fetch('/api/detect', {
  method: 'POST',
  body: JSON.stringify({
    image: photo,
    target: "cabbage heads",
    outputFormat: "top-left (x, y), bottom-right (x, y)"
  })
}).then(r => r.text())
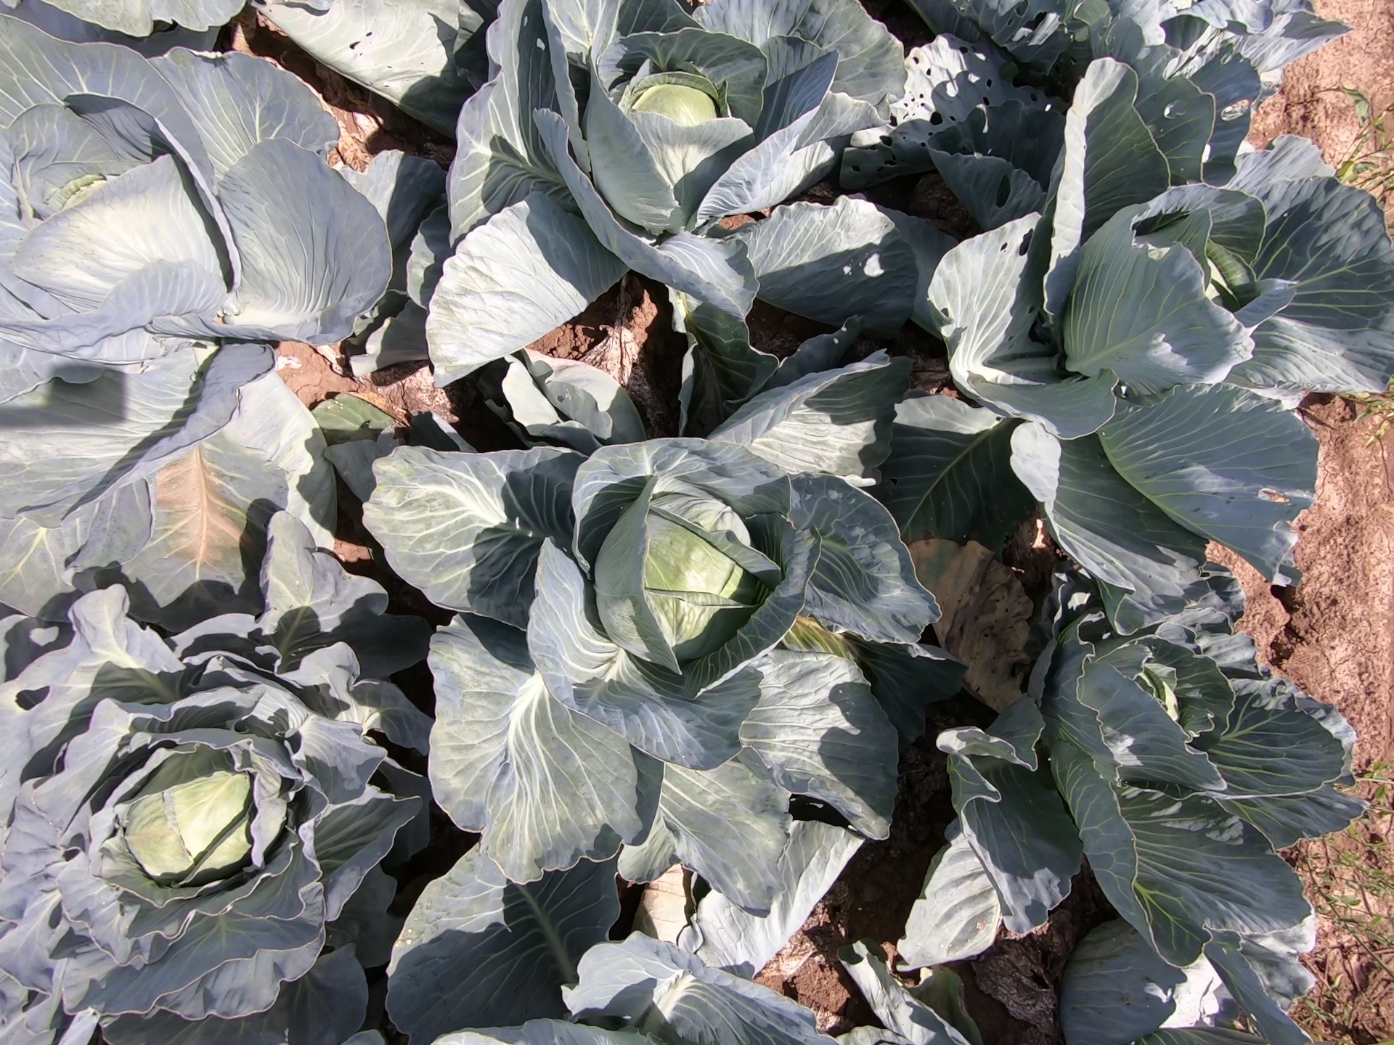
top-left (125, 740), bottom-right (284, 889)
top-left (44, 178), bottom-right (194, 308)
top-left (1073, 657), bottom-right (1183, 748)
top-left (603, 496), bottom-right (755, 660)
top-left (600, 77), bottom-right (732, 213)
top-left (1083, 238), bottom-right (1235, 372)
top-left (1071, 1), bottom-right (1194, 64)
